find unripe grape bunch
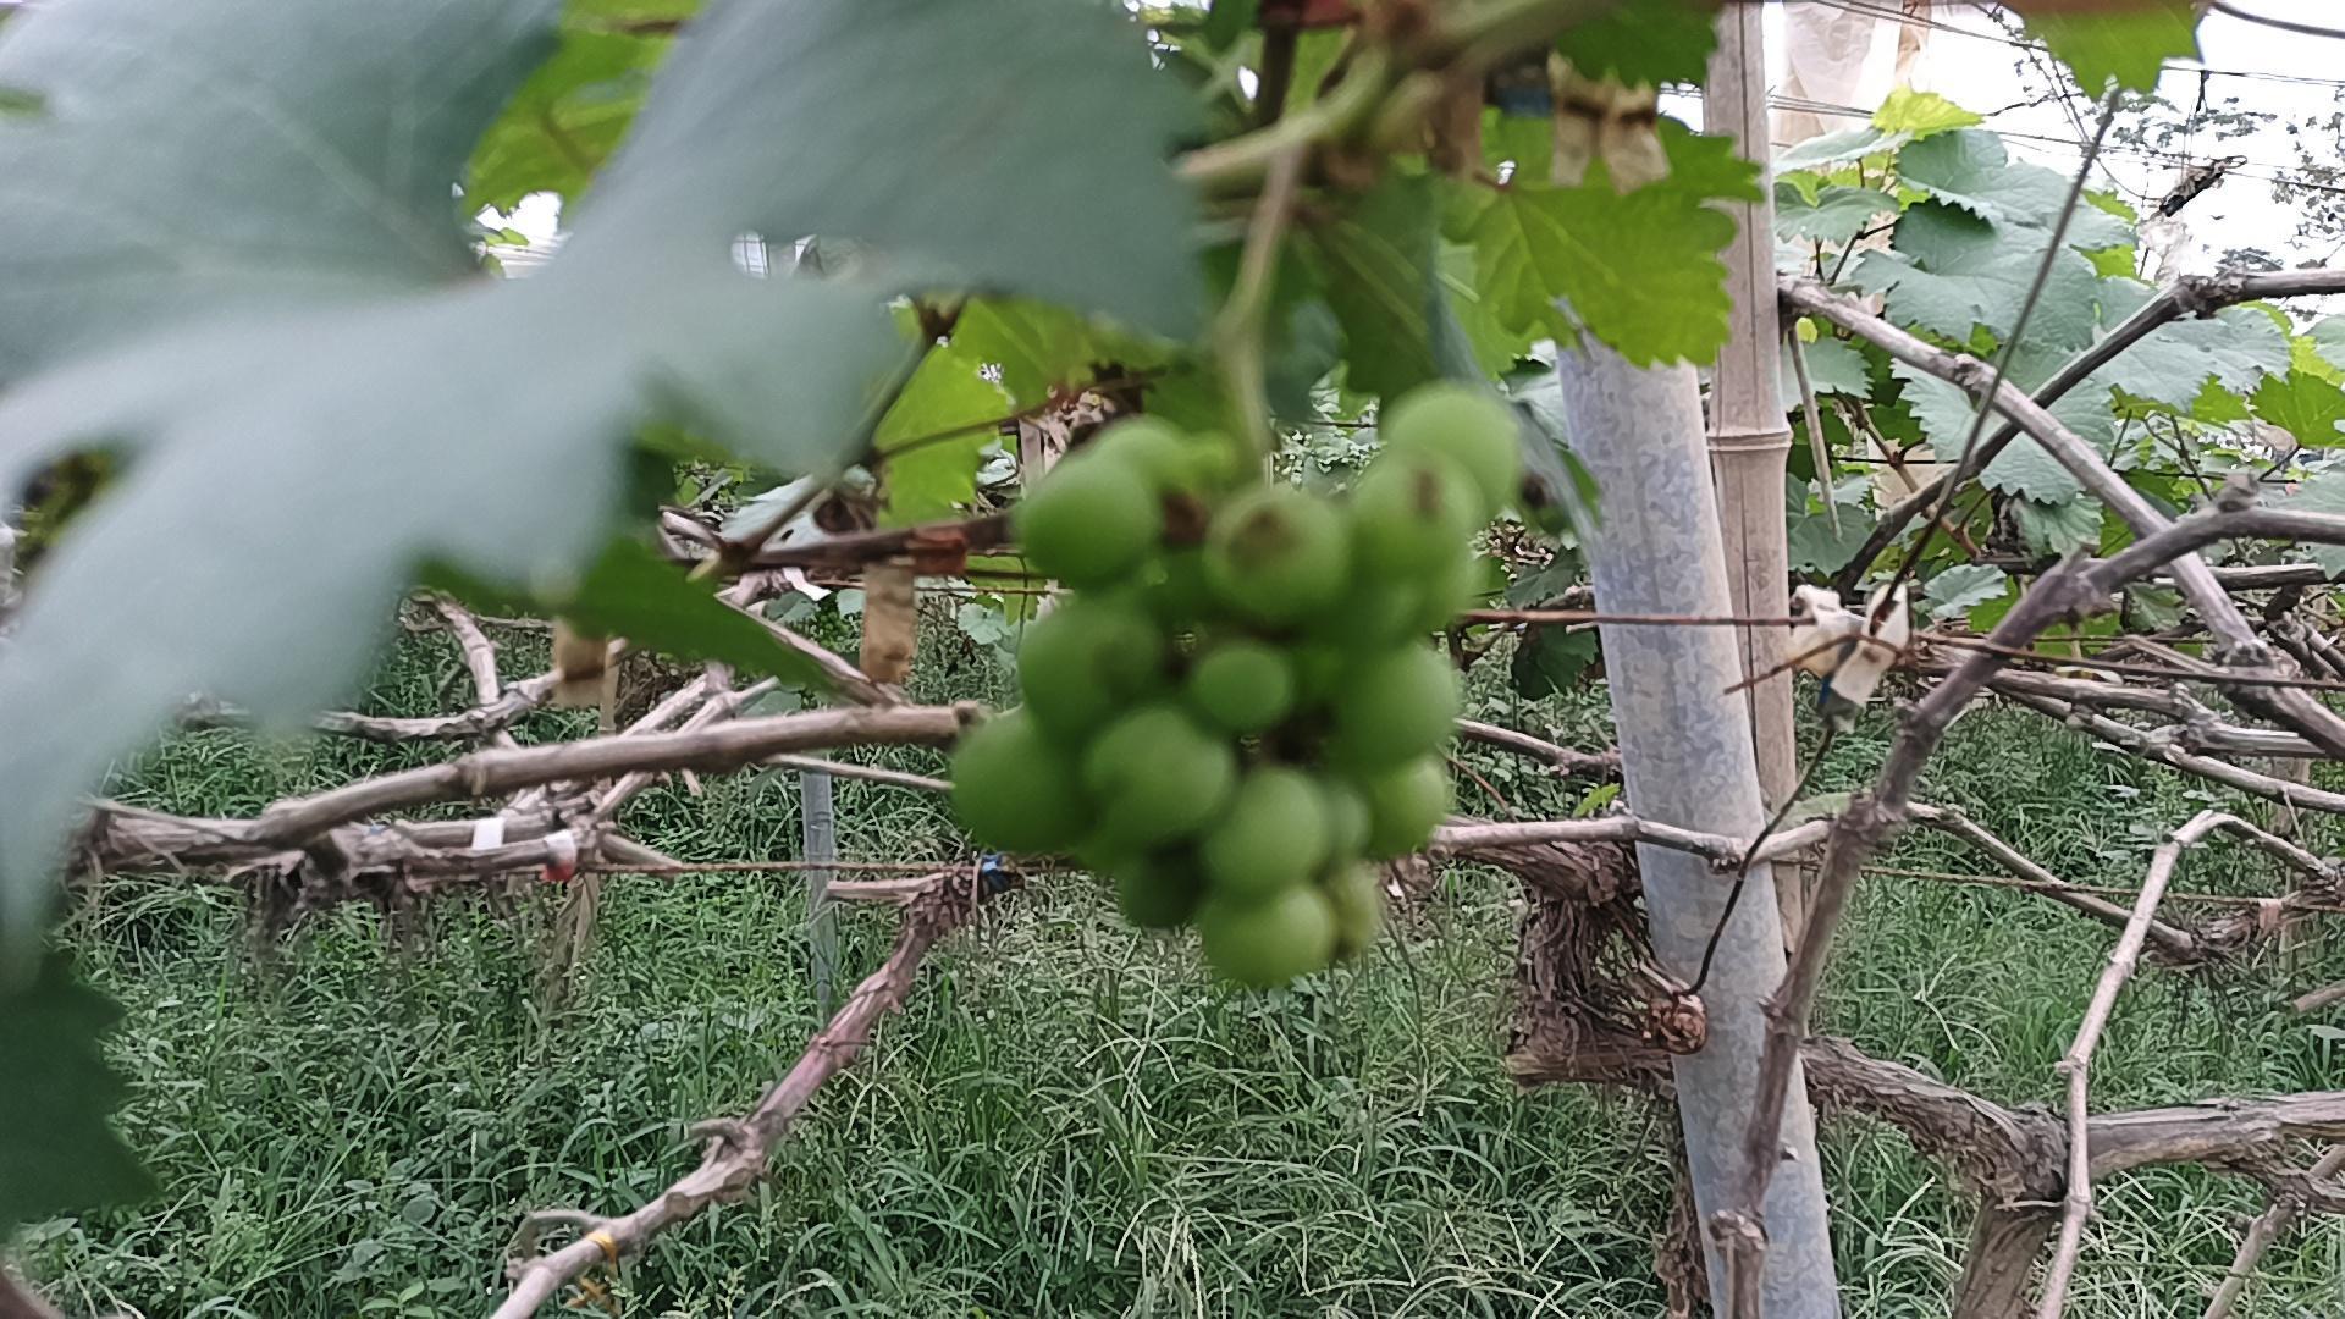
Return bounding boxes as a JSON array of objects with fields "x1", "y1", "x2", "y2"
[{"x1": 954, "y1": 385, "x2": 1523, "y2": 987}]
